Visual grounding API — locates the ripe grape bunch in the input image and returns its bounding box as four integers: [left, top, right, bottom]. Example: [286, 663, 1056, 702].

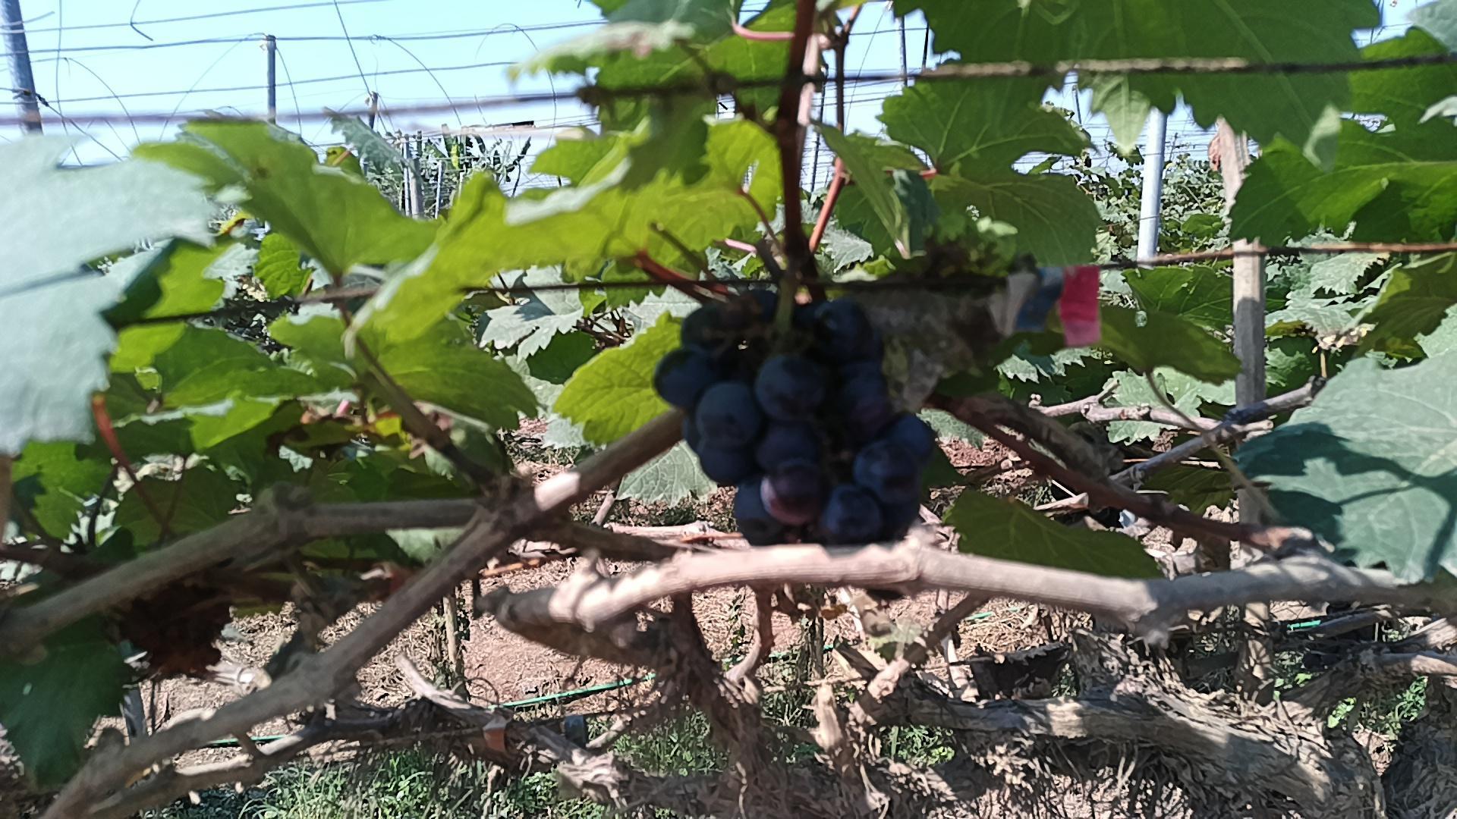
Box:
[655, 290, 936, 544]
